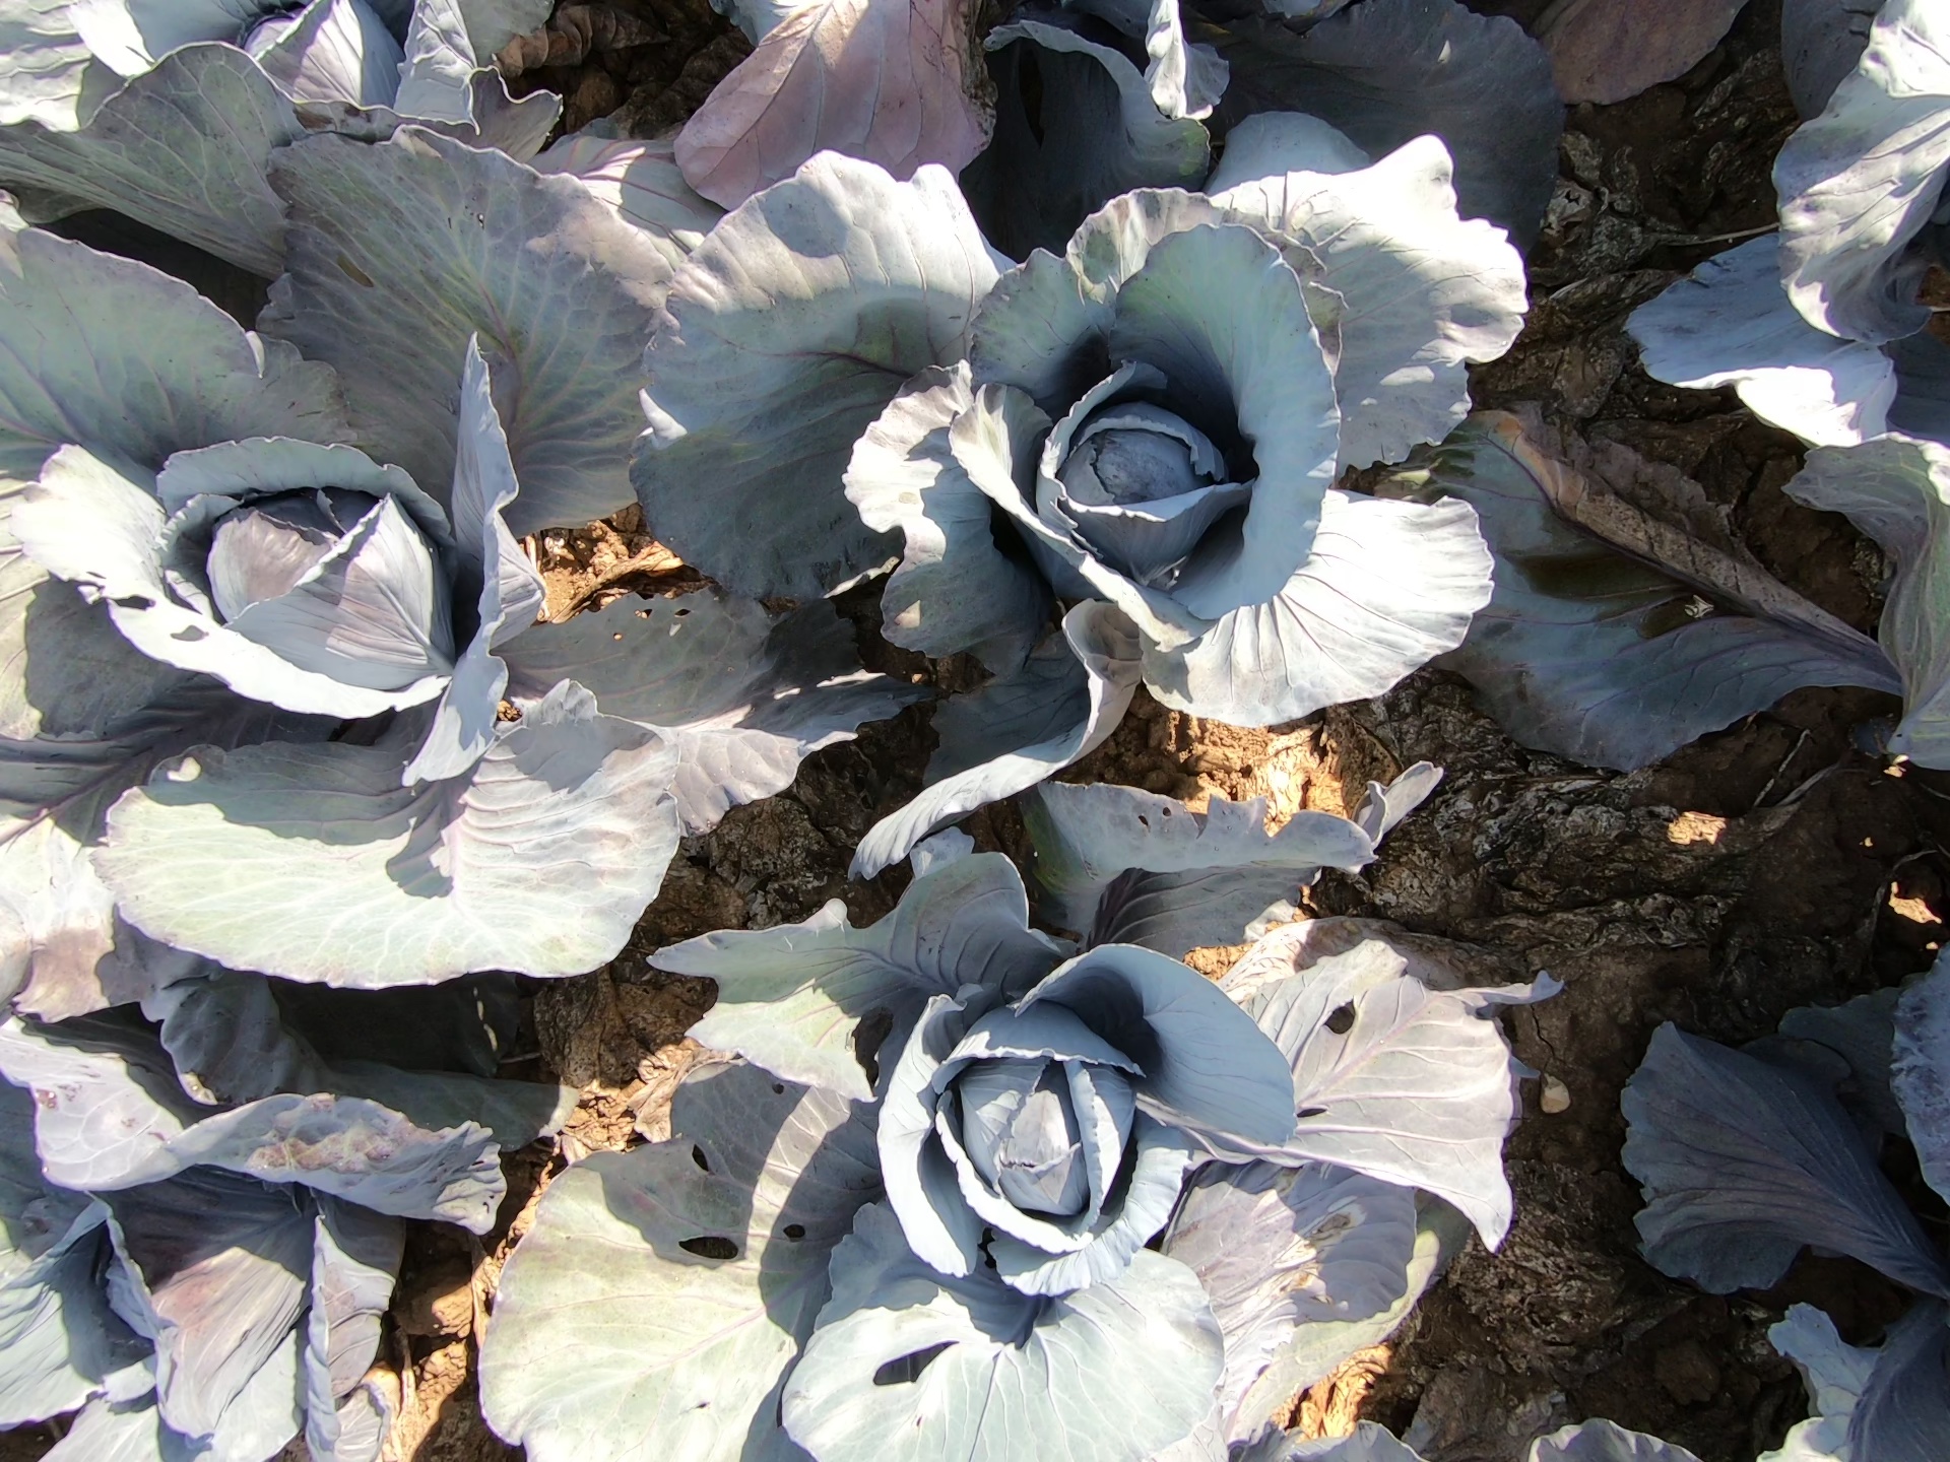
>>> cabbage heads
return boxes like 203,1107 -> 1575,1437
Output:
959,1043 -> 1125,1212
211,483 -> 437,665
225,9 -> 381,130
1062,404 -> 1211,567
97,1172 -> 296,1348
